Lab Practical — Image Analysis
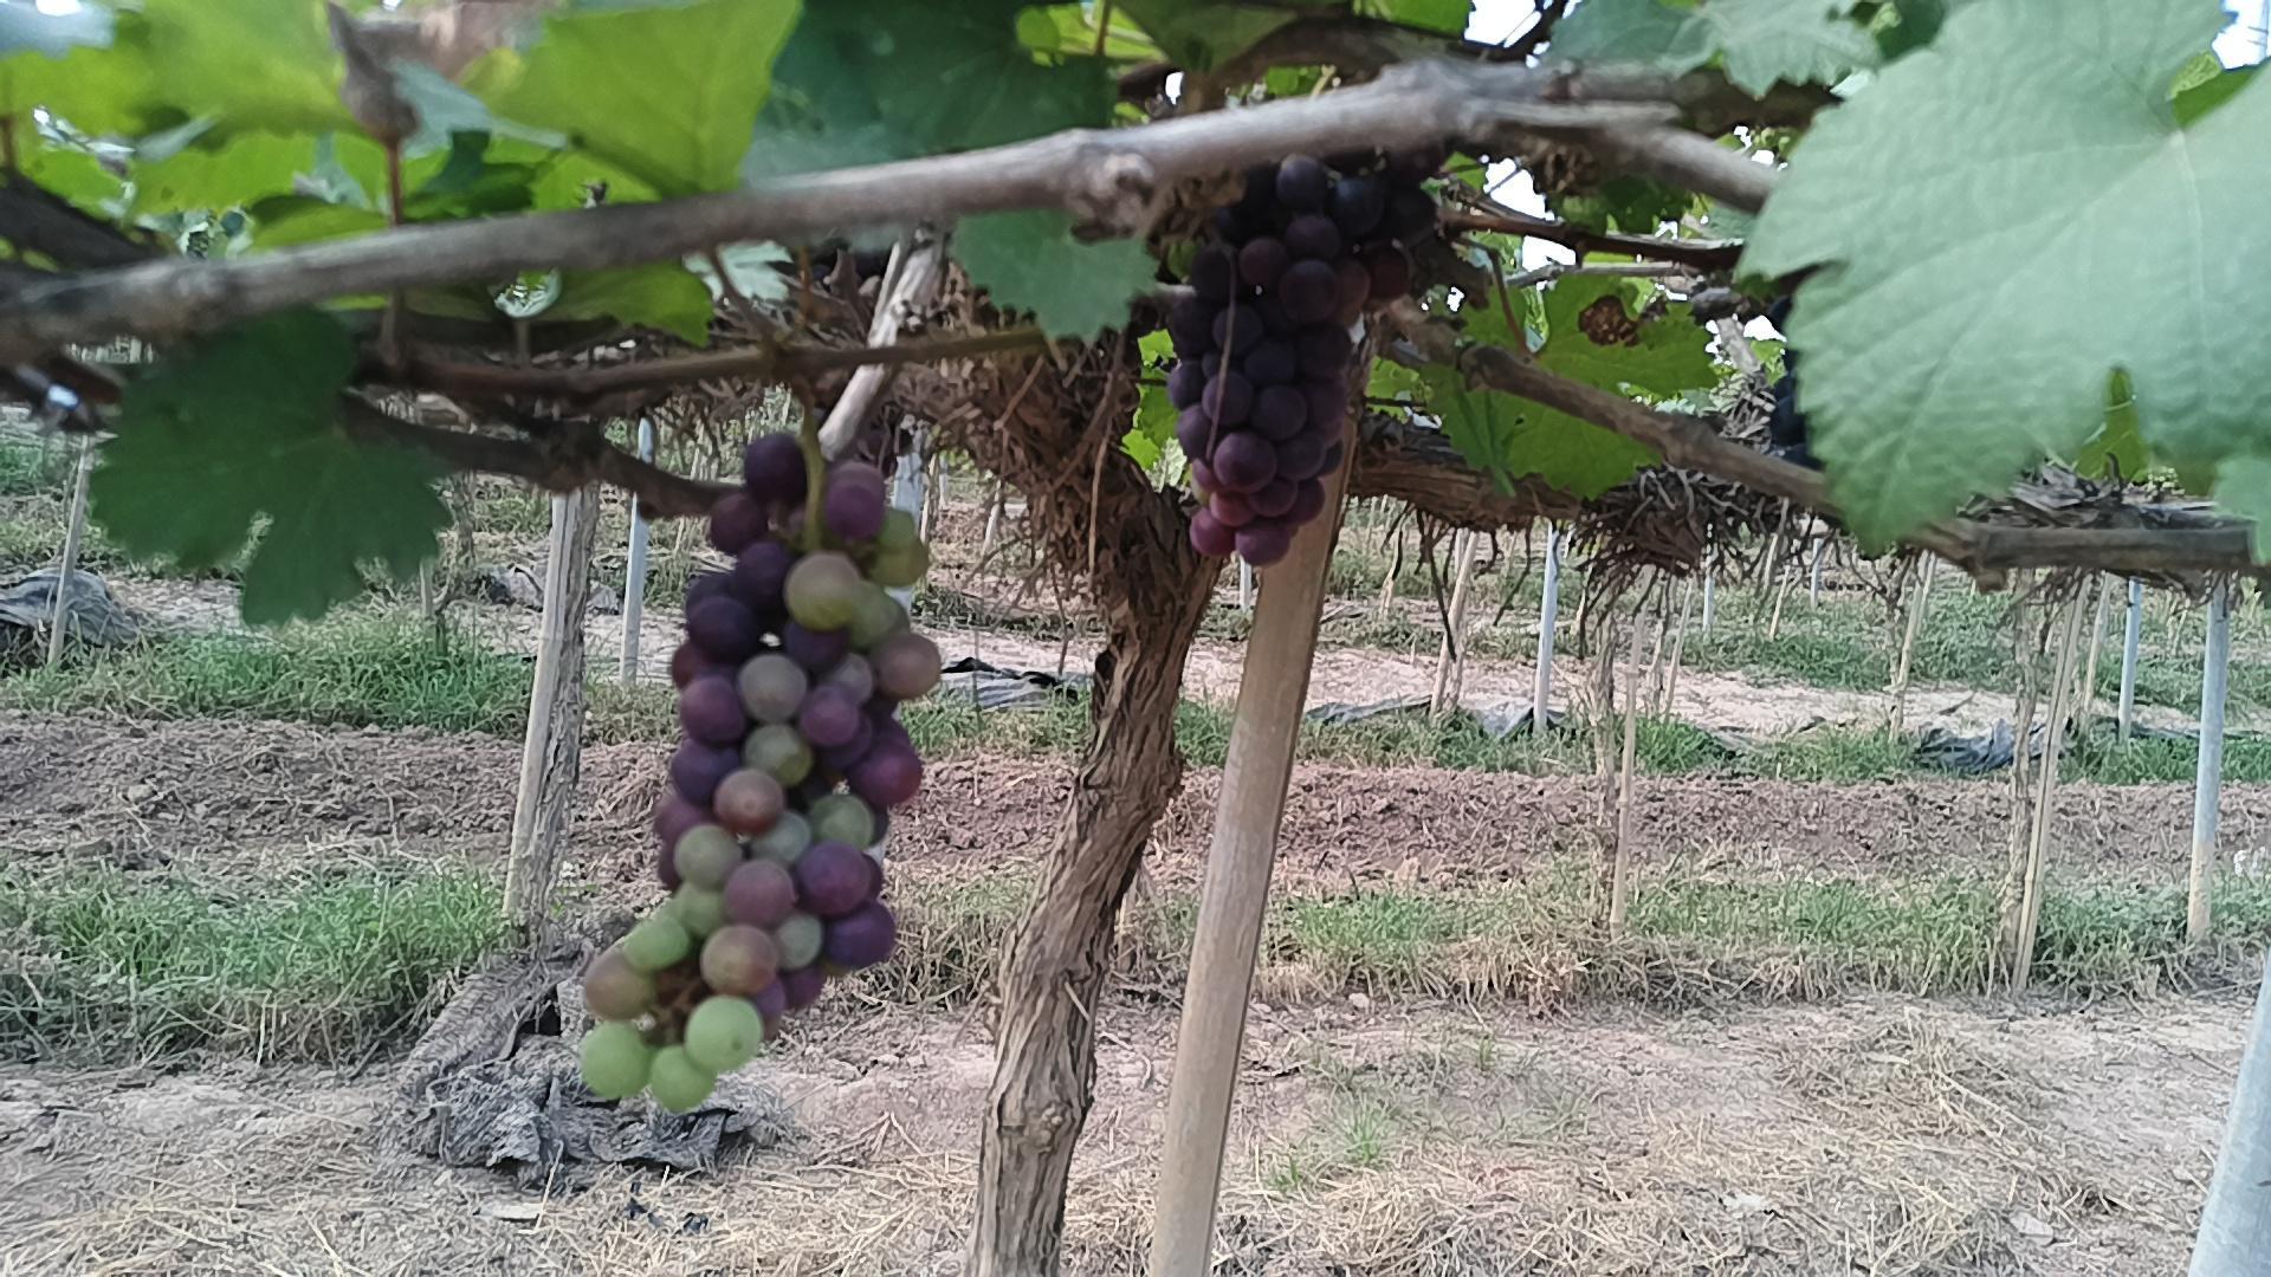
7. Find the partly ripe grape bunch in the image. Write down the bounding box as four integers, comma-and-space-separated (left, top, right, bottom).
577, 433, 940, 1114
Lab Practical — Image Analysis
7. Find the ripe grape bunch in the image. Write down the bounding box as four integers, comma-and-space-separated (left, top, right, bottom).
1166, 148, 1444, 568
